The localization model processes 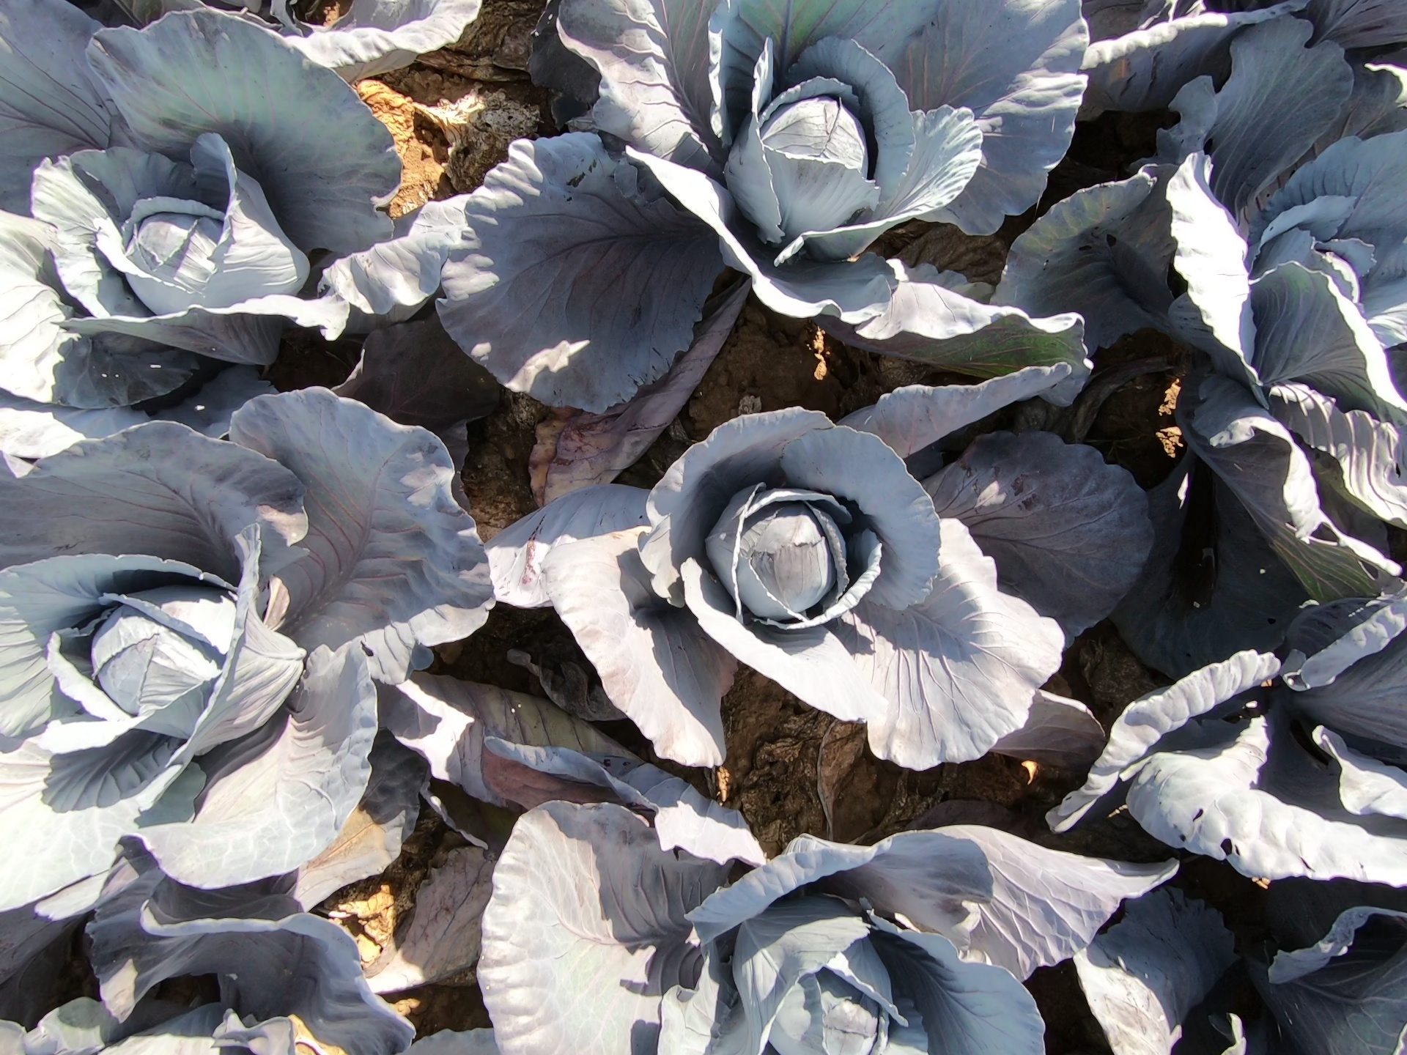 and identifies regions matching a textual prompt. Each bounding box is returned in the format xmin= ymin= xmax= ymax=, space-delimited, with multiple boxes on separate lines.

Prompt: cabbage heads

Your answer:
xmin=126 ymin=207 xmax=247 ymax=320
xmin=753 ymin=95 xmax=868 ymax=232
xmin=751 ymin=908 xmax=887 ymax=1054
xmin=92 ymin=590 xmax=258 ymax=717
xmin=1278 ymin=248 xmax=1363 ymax=341
xmin=729 ymin=497 xmax=843 ymax=618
